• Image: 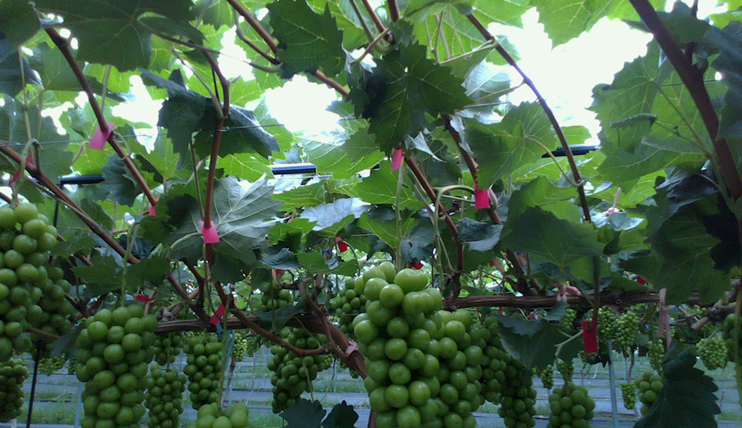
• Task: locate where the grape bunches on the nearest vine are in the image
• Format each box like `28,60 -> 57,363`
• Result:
422,310 -> 483,427
353,261 -> 443,427
0,203 -> 58,361
76,304 -> 158,427
184,402 -> 252,427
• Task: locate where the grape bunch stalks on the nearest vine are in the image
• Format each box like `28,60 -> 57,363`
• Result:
395,154 -> 404,273
216,293 -> 232,417
433,185 -> 474,296
11,138 -> 45,209
120,220 -> 140,307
